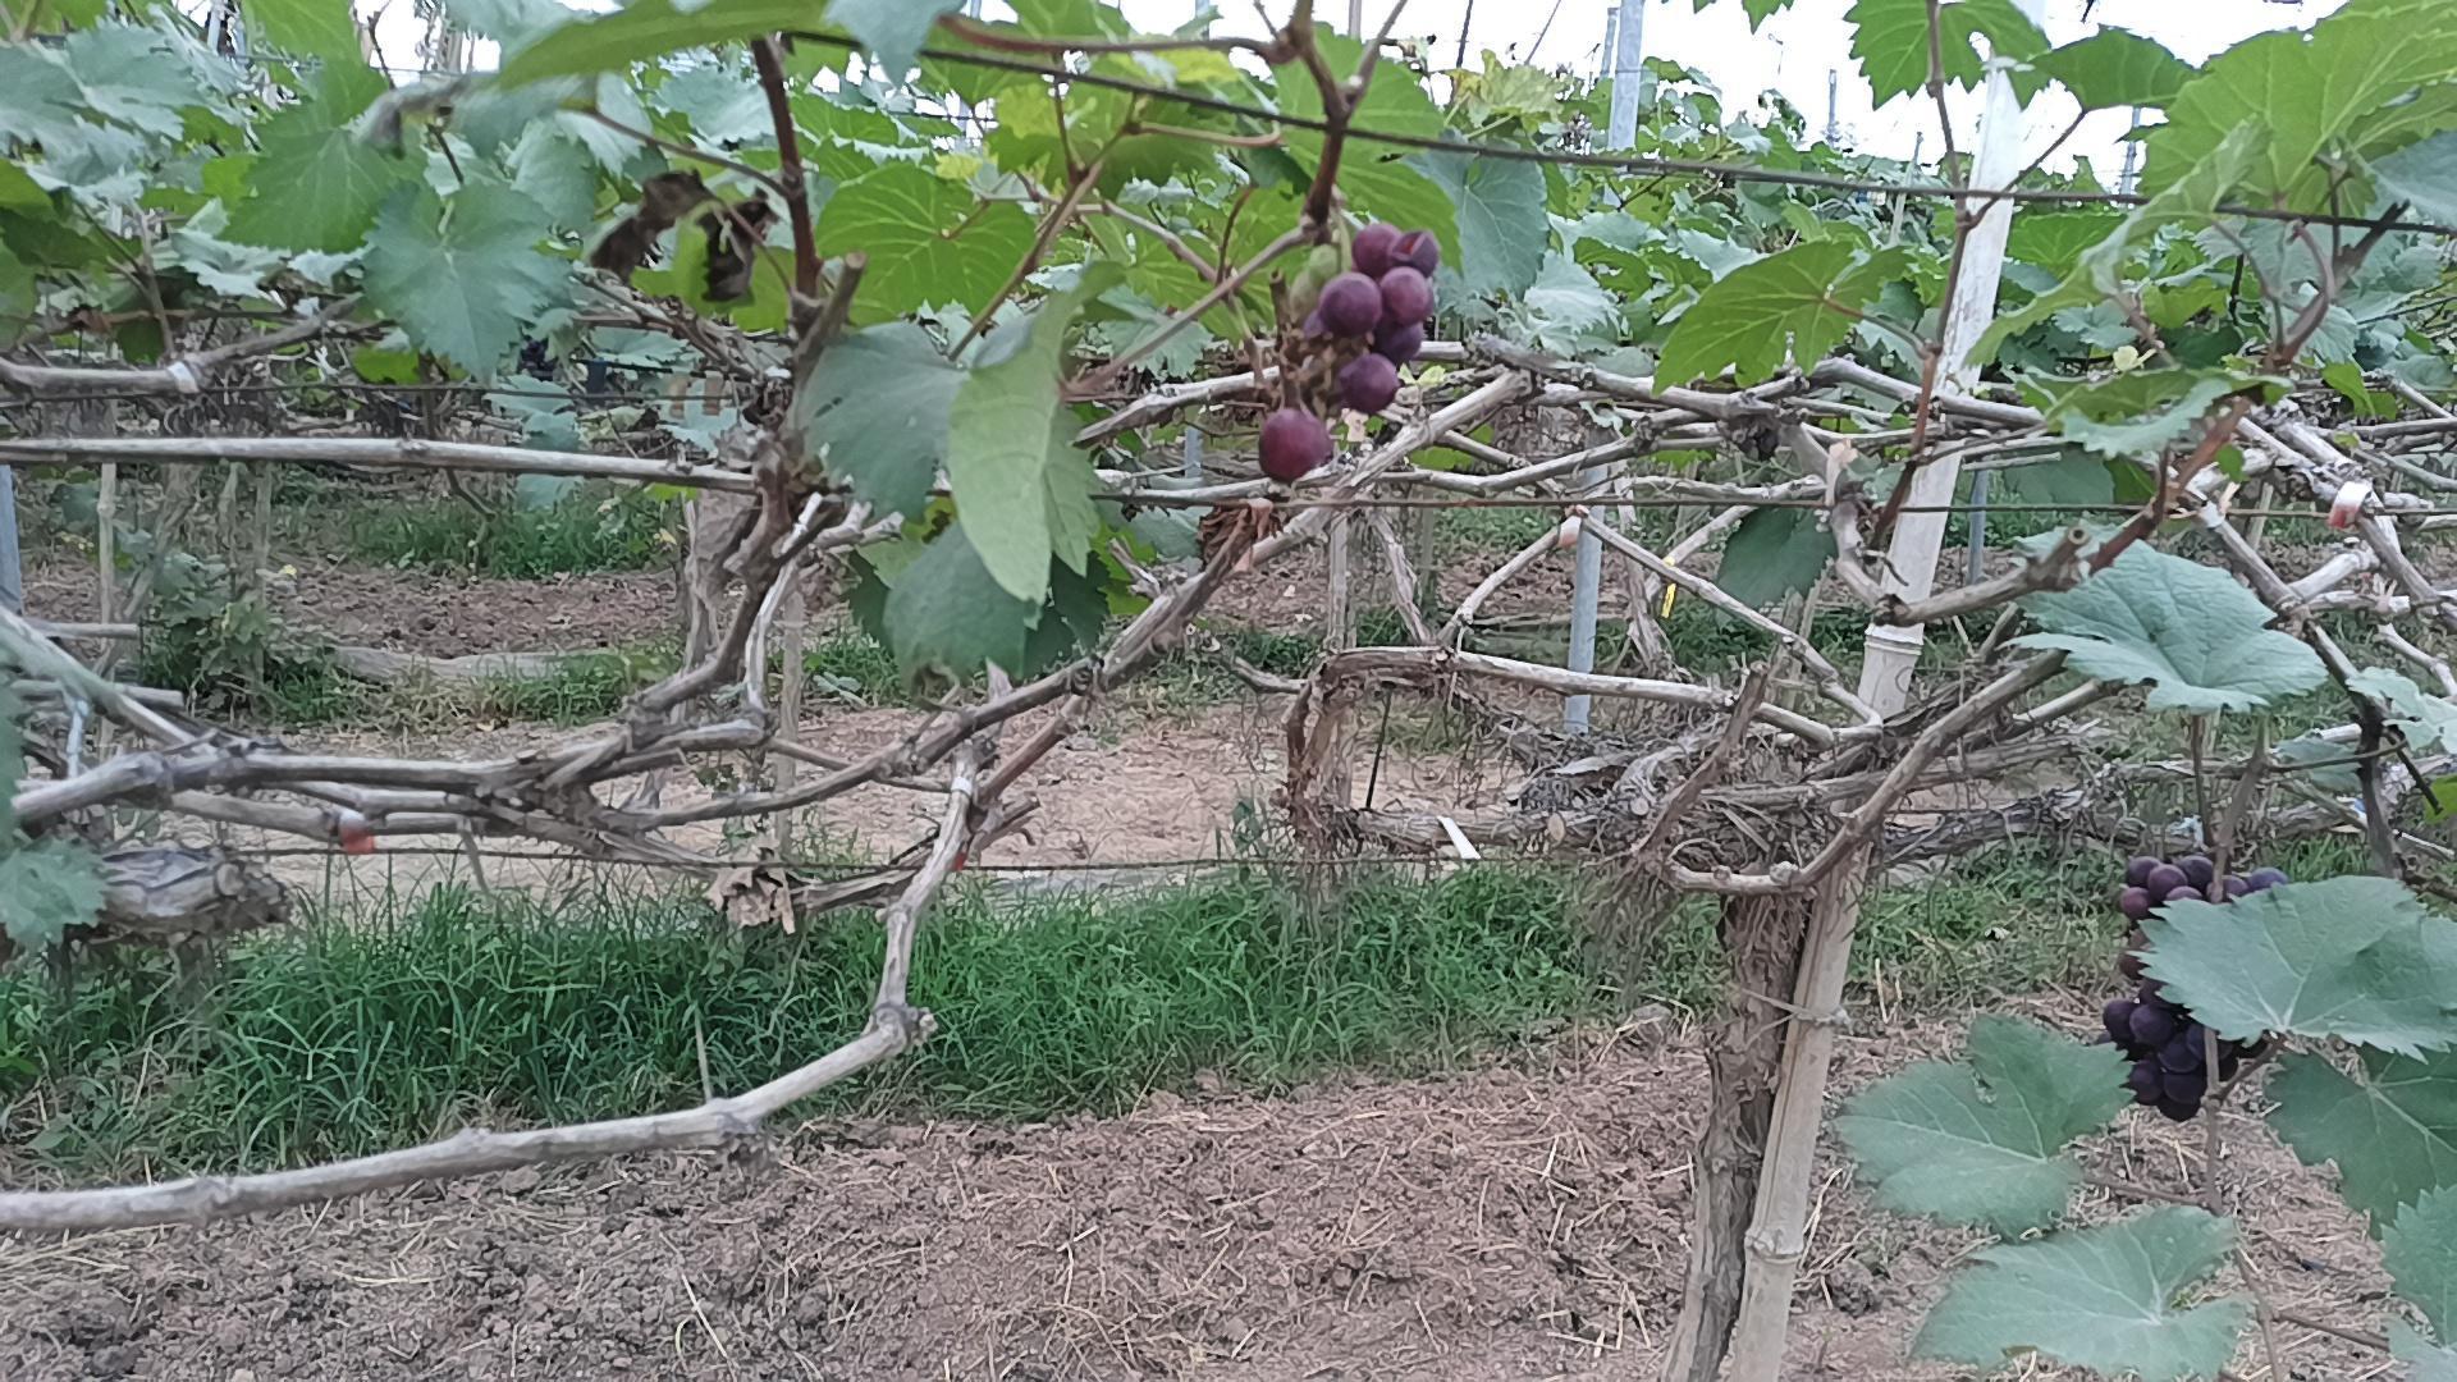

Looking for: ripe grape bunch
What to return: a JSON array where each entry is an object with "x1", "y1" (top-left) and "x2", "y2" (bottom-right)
[{"x1": 2103, "y1": 852, "x2": 2280, "y2": 1121}]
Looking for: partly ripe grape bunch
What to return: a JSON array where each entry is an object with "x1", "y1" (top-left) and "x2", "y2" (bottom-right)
[{"x1": 1260, "y1": 220, "x2": 1440, "y2": 480}]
